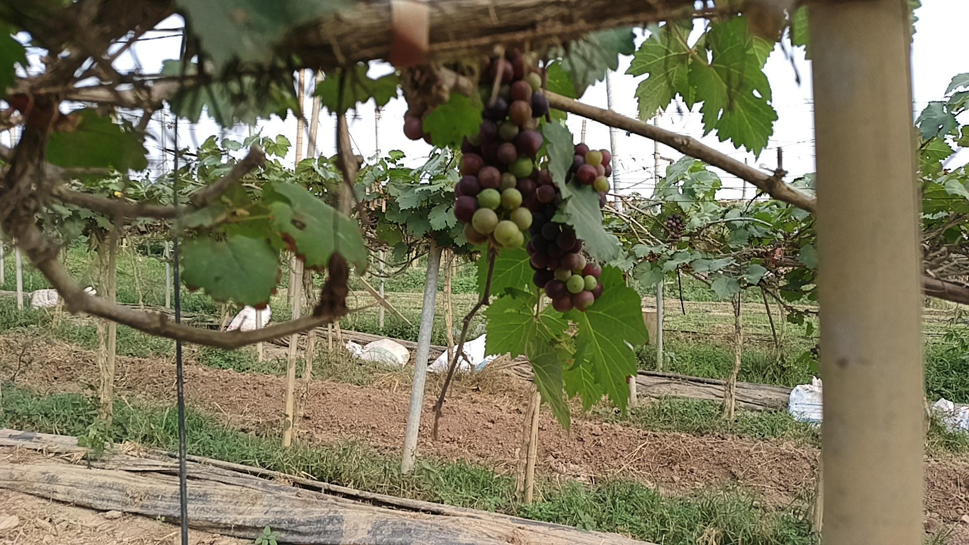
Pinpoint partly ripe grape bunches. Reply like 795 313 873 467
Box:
530 141 611 309
455 80 542 245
